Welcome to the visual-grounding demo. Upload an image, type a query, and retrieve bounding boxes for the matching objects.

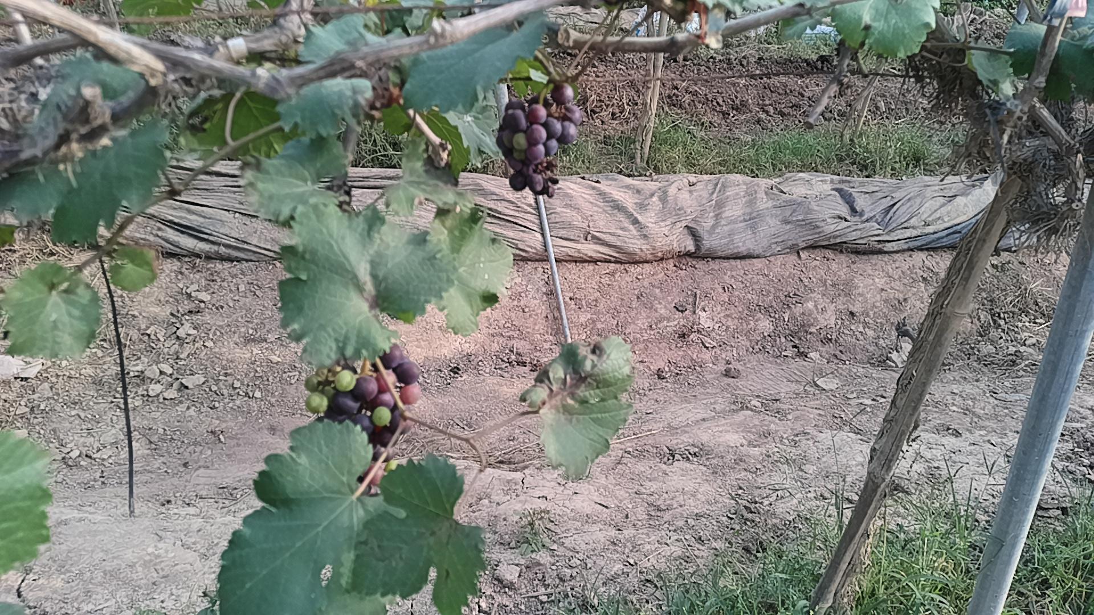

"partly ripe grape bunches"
[305,344,422,486]
[496,83,583,198]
